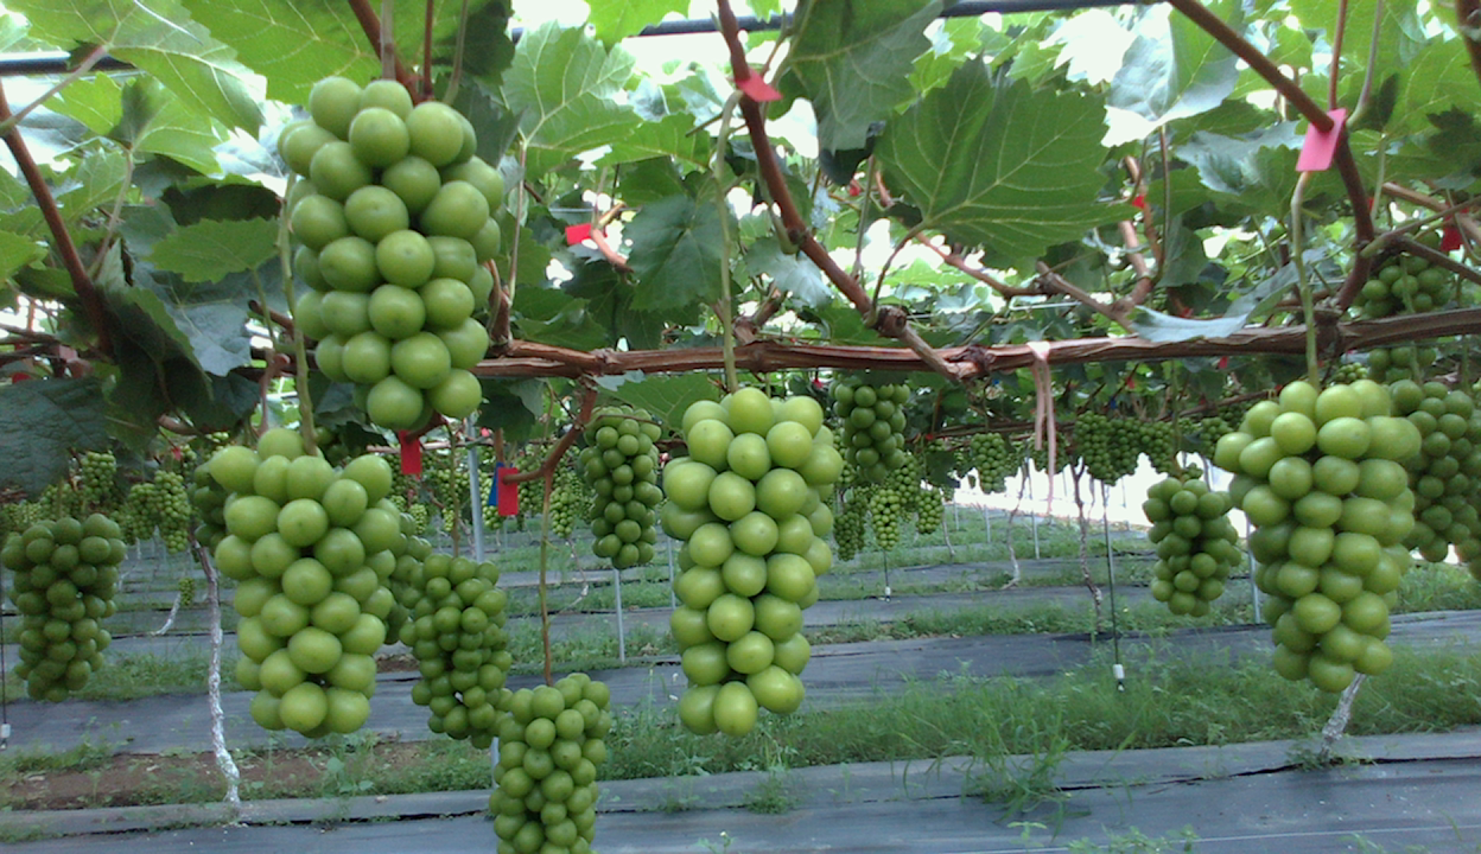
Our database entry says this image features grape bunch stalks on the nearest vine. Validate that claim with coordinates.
[275,168,318,452]
[1290,170,1317,391]
[713,88,744,391]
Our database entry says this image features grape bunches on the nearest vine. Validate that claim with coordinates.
[660,388,843,738]
[1213,381,1420,692]
[208,427,401,738]
[278,76,504,431]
